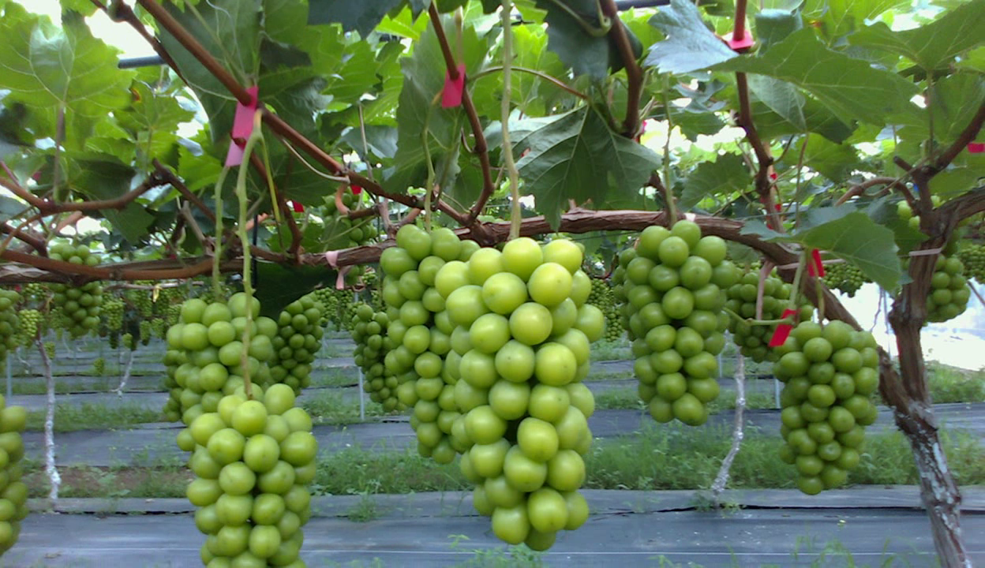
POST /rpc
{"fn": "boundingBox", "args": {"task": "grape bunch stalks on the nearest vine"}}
[811,257,825,325]
[500,0,521,241]
[212,166,230,301]
[236,108,263,399]
[421,90,442,233]
[661,73,676,228]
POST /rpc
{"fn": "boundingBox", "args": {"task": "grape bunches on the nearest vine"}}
[185,383,317,567]
[621,220,737,426]
[378,225,481,466]
[1,395,31,552]
[434,237,605,551]
[167,291,246,424]
[772,319,881,496]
